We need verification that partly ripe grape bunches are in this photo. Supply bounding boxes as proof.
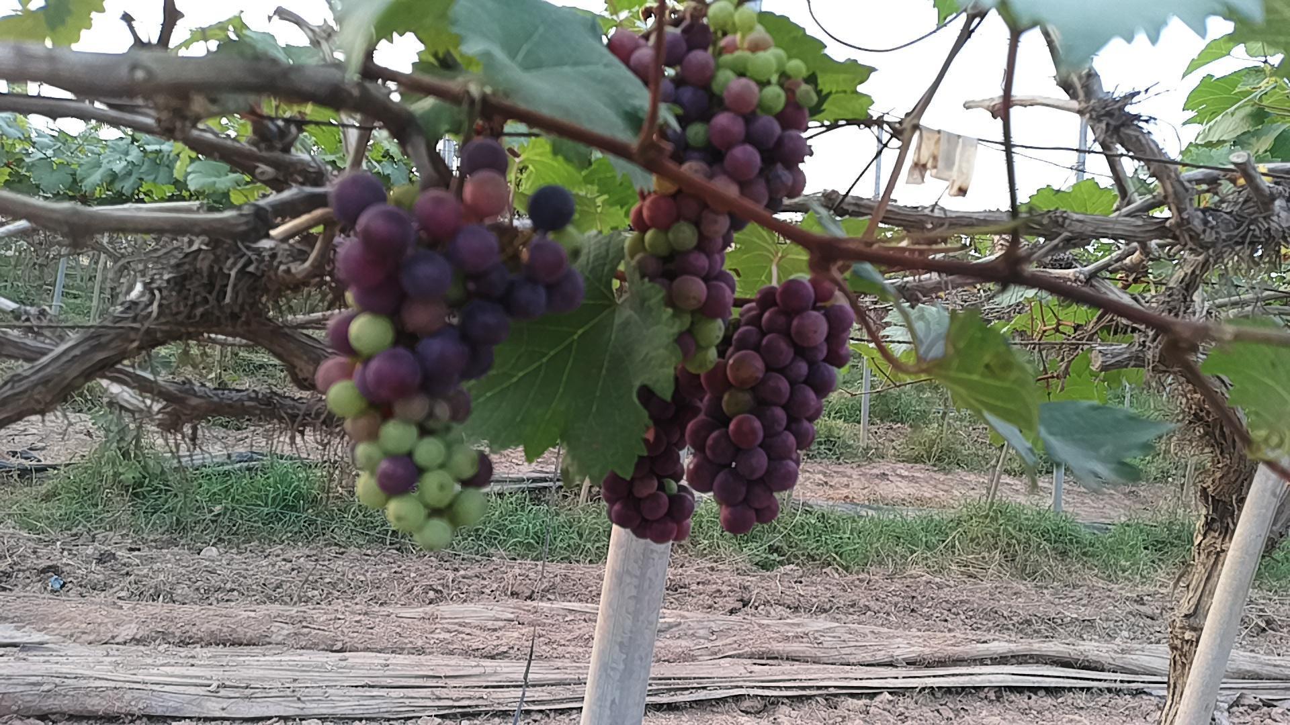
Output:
[315,138,584,548]
[609,0,818,374]
[601,362,706,544]
[686,277,853,534]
